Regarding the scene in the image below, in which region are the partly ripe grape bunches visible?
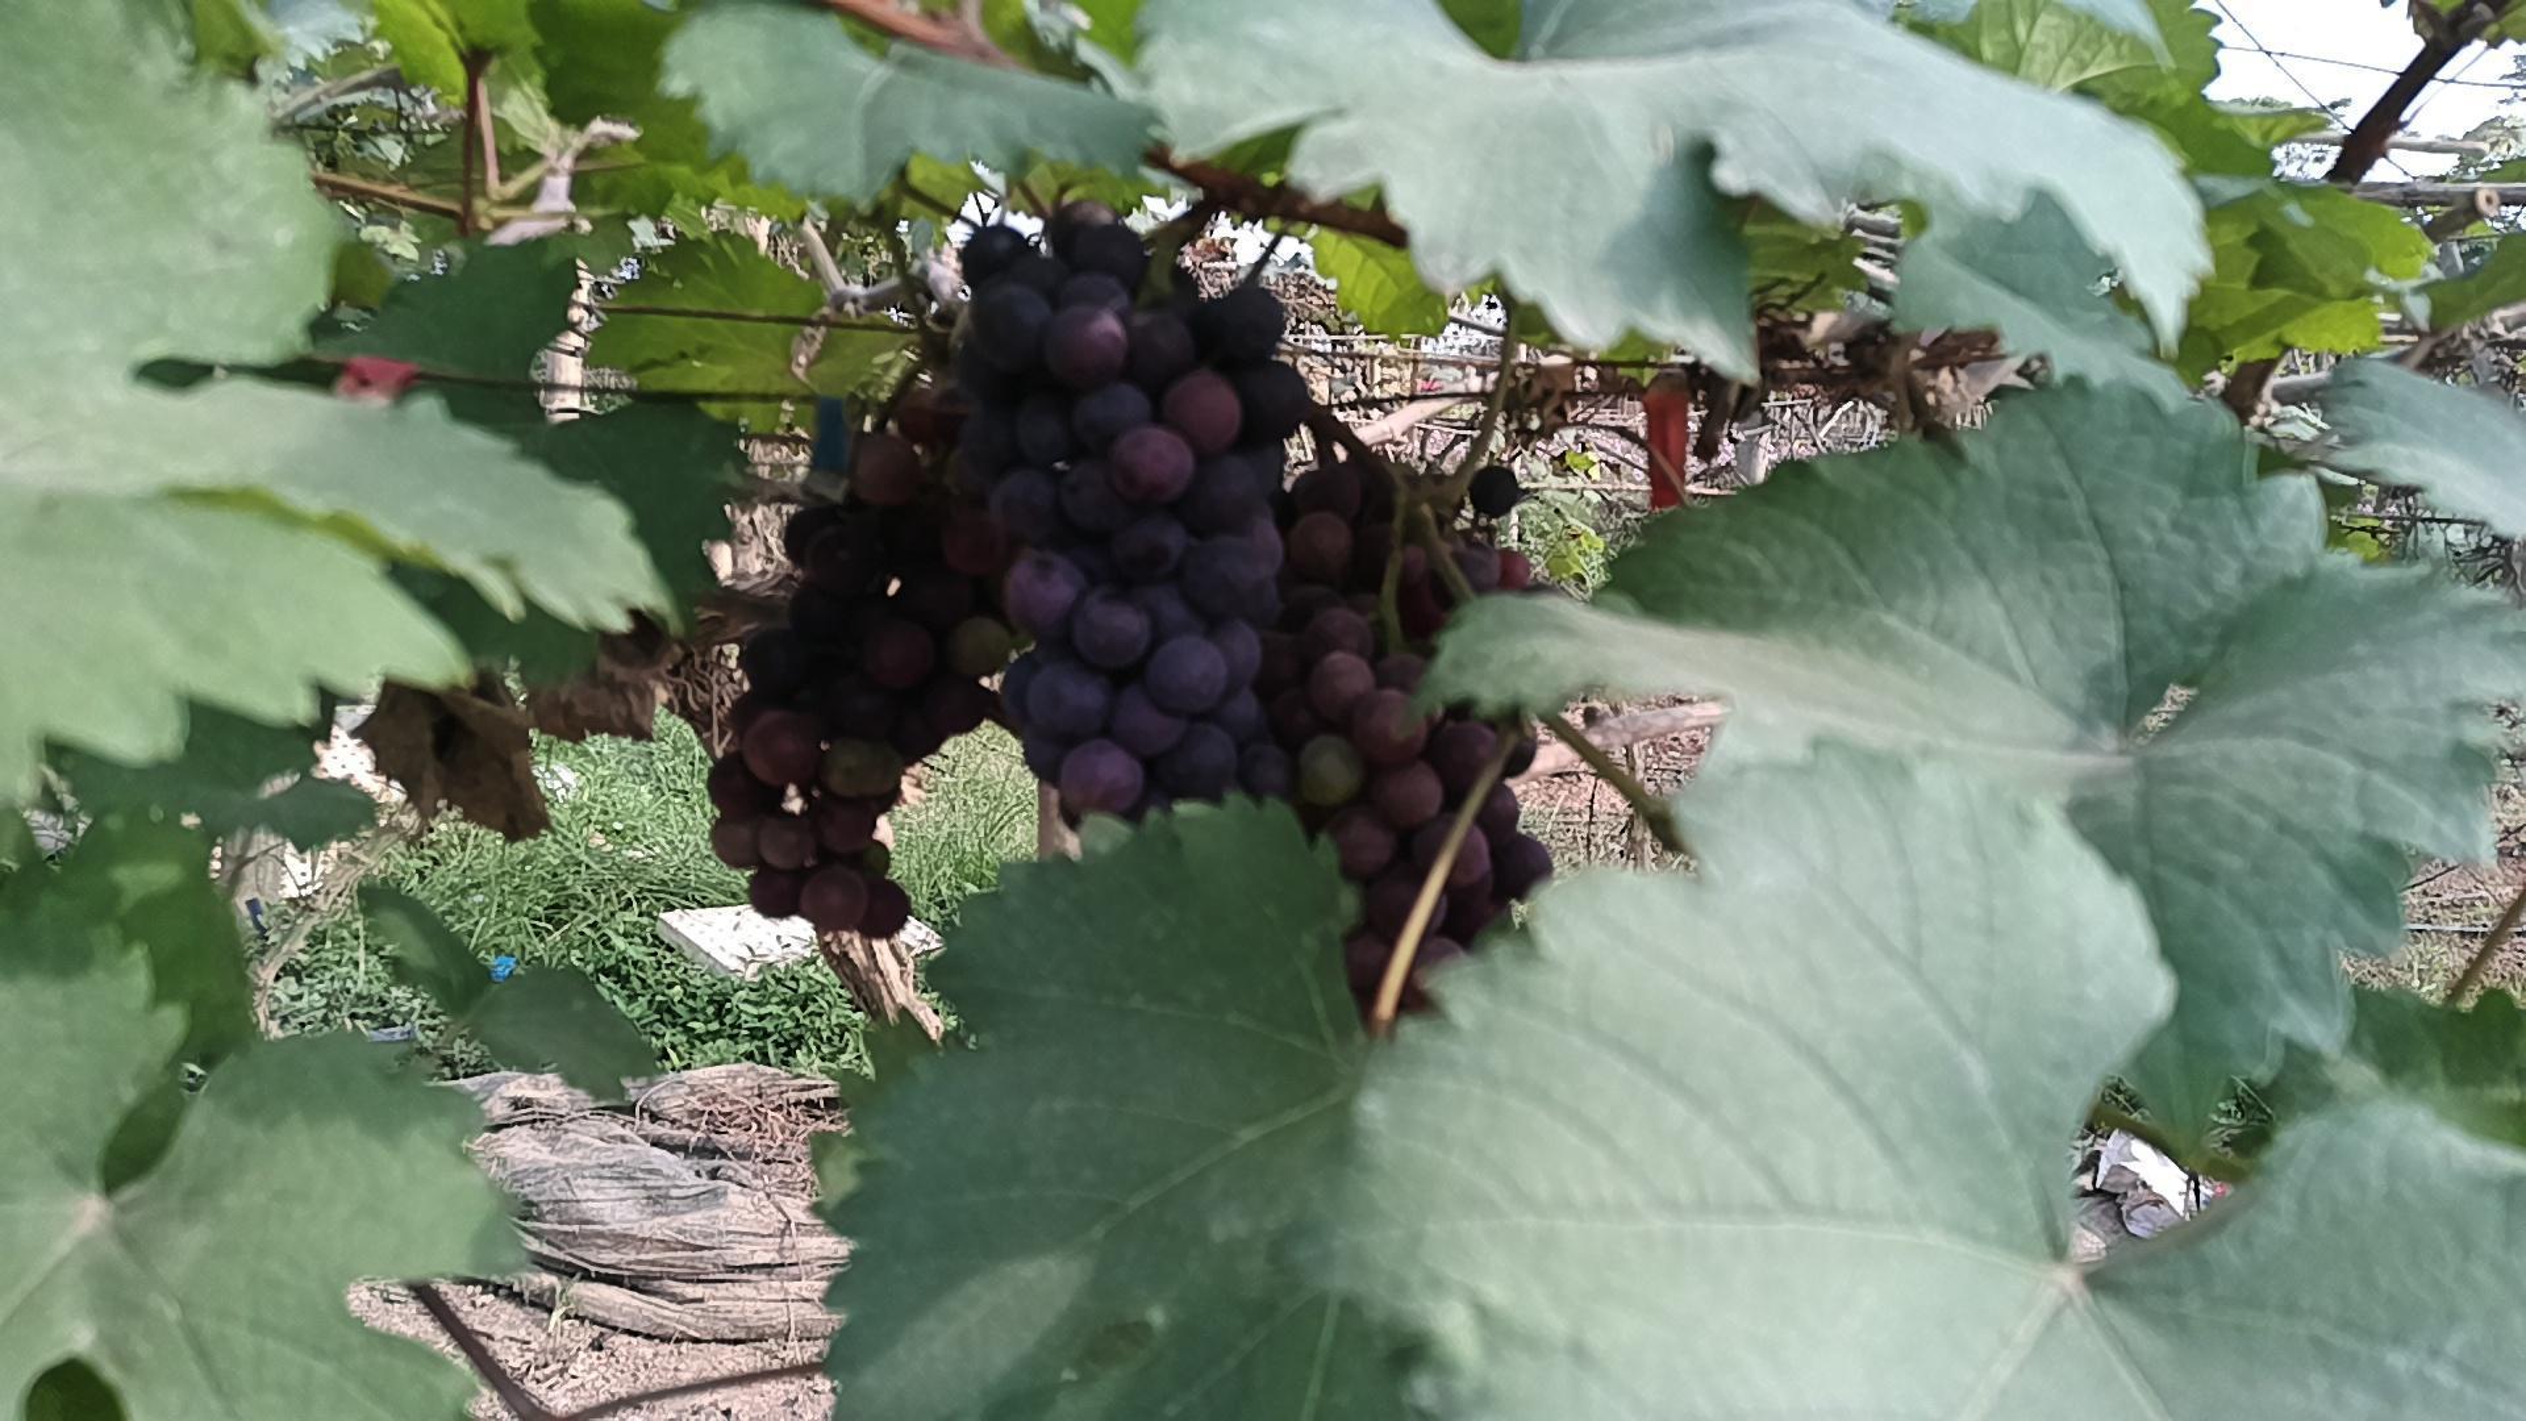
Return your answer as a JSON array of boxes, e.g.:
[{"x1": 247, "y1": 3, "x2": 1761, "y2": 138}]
[
  {"x1": 704, "y1": 199, "x2": 1308, "y2": 941},
  {"x1": 1250, "y1": 447, "x2": 1554, "y2": 1039}
]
